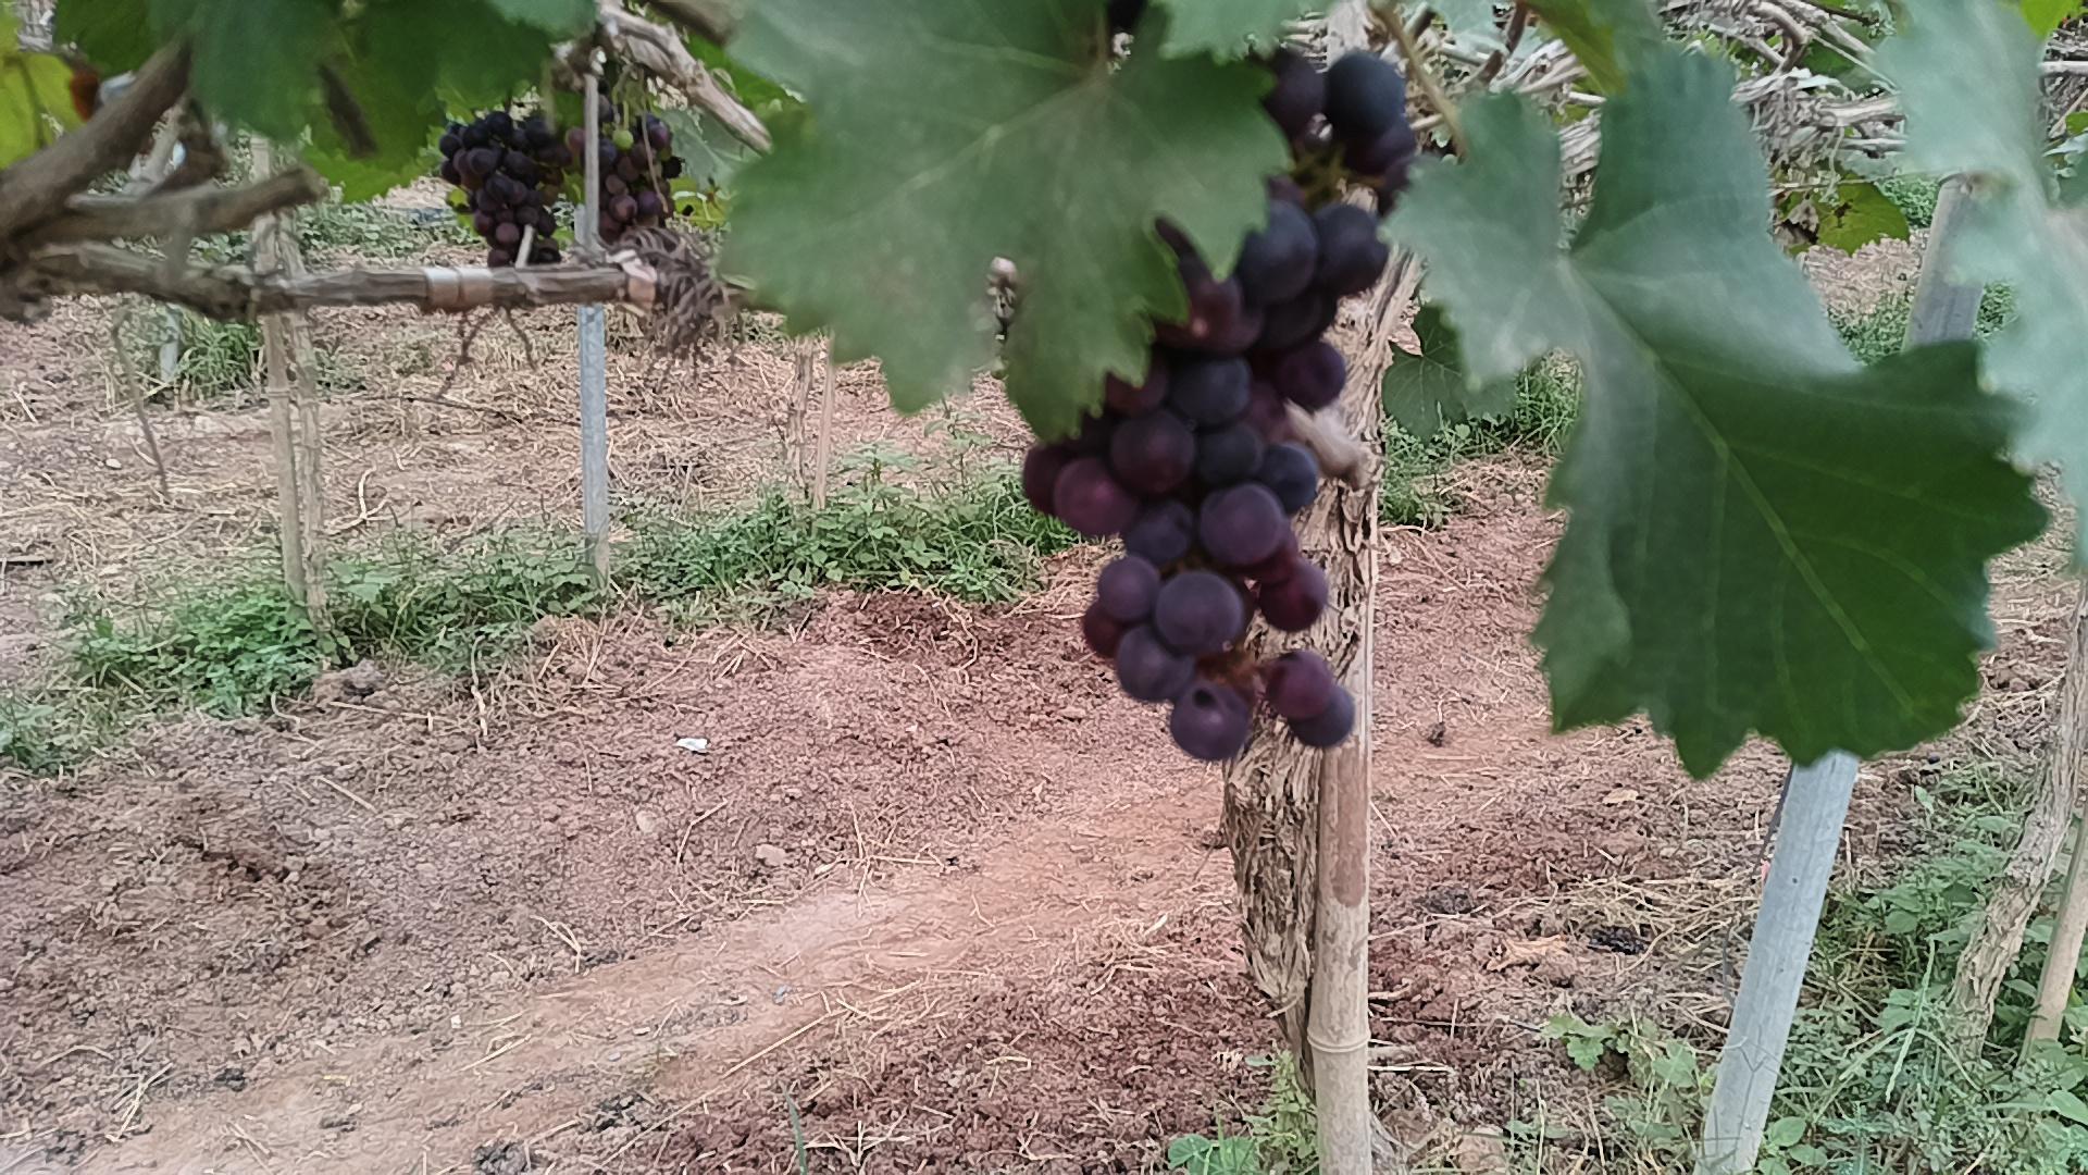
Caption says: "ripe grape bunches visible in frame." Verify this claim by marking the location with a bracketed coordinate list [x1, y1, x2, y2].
[1022, 46, 1416, 762]
[437, 110, 573, 265]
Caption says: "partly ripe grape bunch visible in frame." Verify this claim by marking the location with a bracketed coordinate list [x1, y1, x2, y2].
[564, 79, 682, 245]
